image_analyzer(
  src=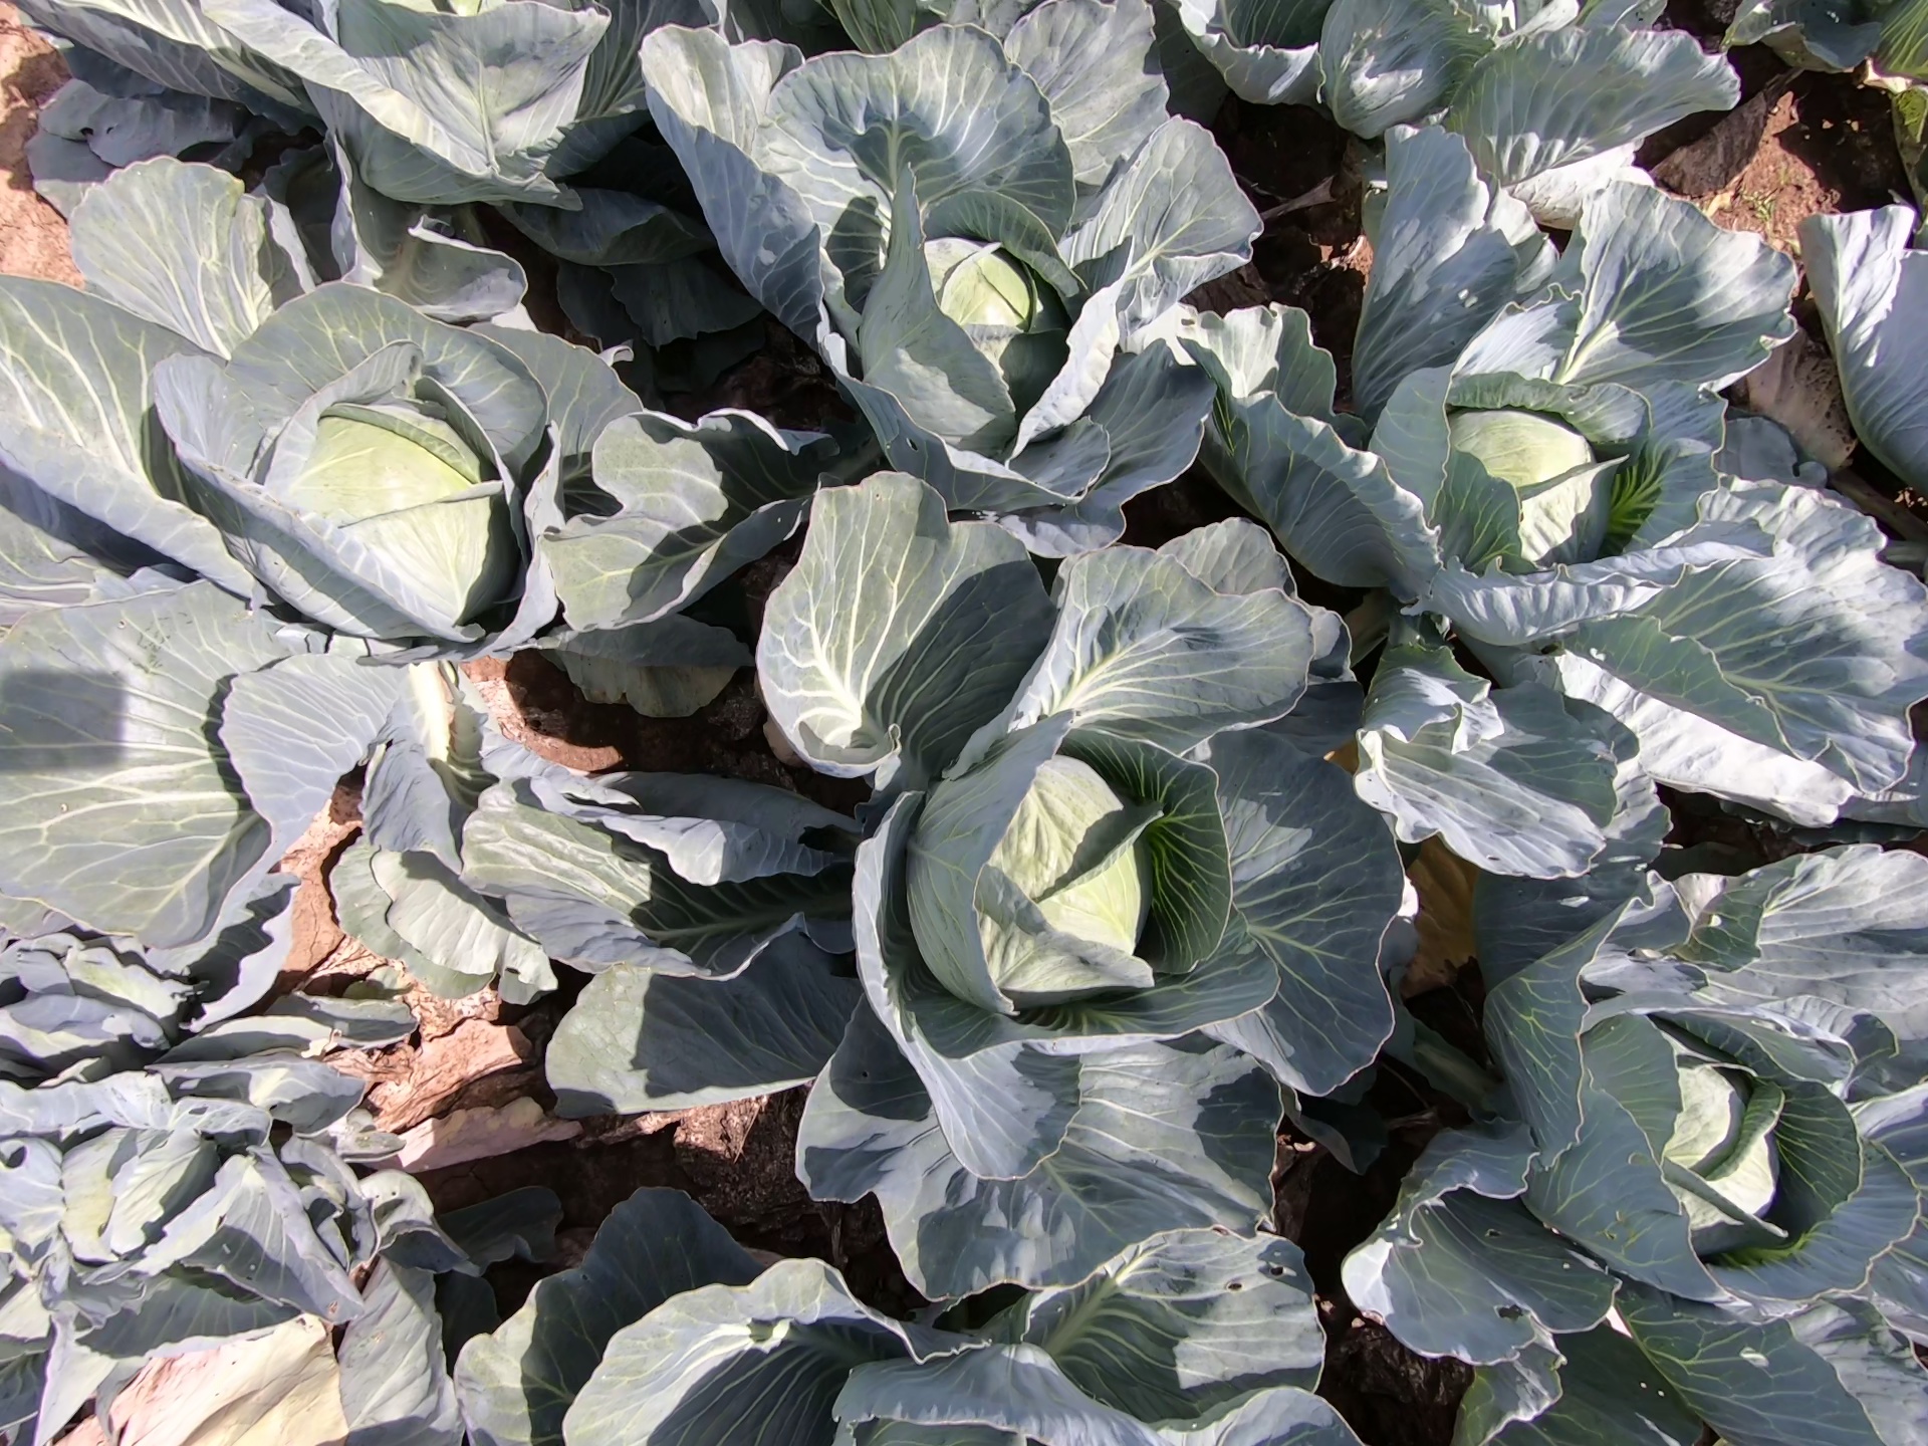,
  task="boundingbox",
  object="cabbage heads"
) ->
[1551,1007,1776,1254]
[244,401,514,641]
[918,752,1155,1003]
[330,0,557,185]
[39,1124,216,1263]
[865,233,1086,448]
[1412,402,1607,602]
[862,1360,1087,1441]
